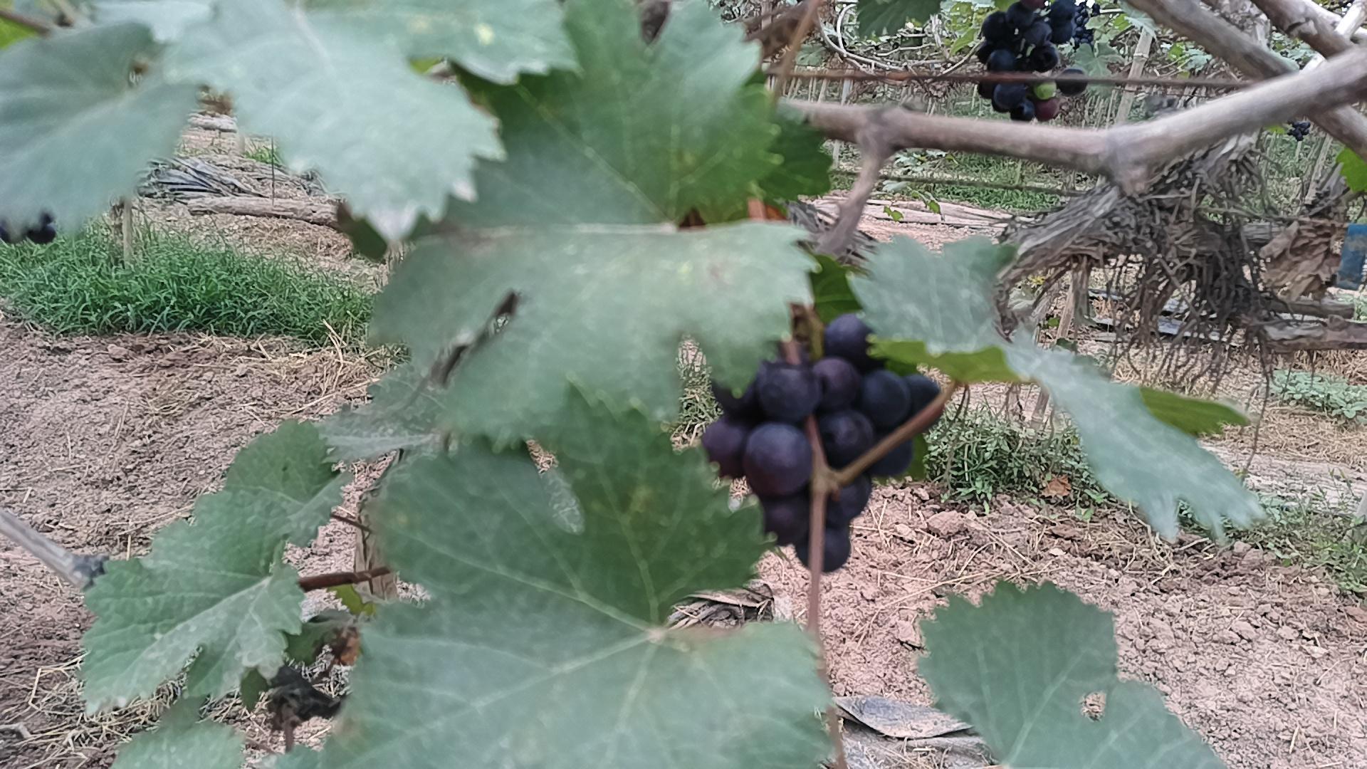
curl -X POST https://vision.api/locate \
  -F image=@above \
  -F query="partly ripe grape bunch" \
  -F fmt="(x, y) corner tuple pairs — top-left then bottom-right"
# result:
(975, 0), (1099, 123)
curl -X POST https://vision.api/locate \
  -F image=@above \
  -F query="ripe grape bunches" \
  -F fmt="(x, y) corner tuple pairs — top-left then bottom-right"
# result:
(0, 208), (57, 244)
(1287, 120), (1313, 142)
(701, 313), (943, 572)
